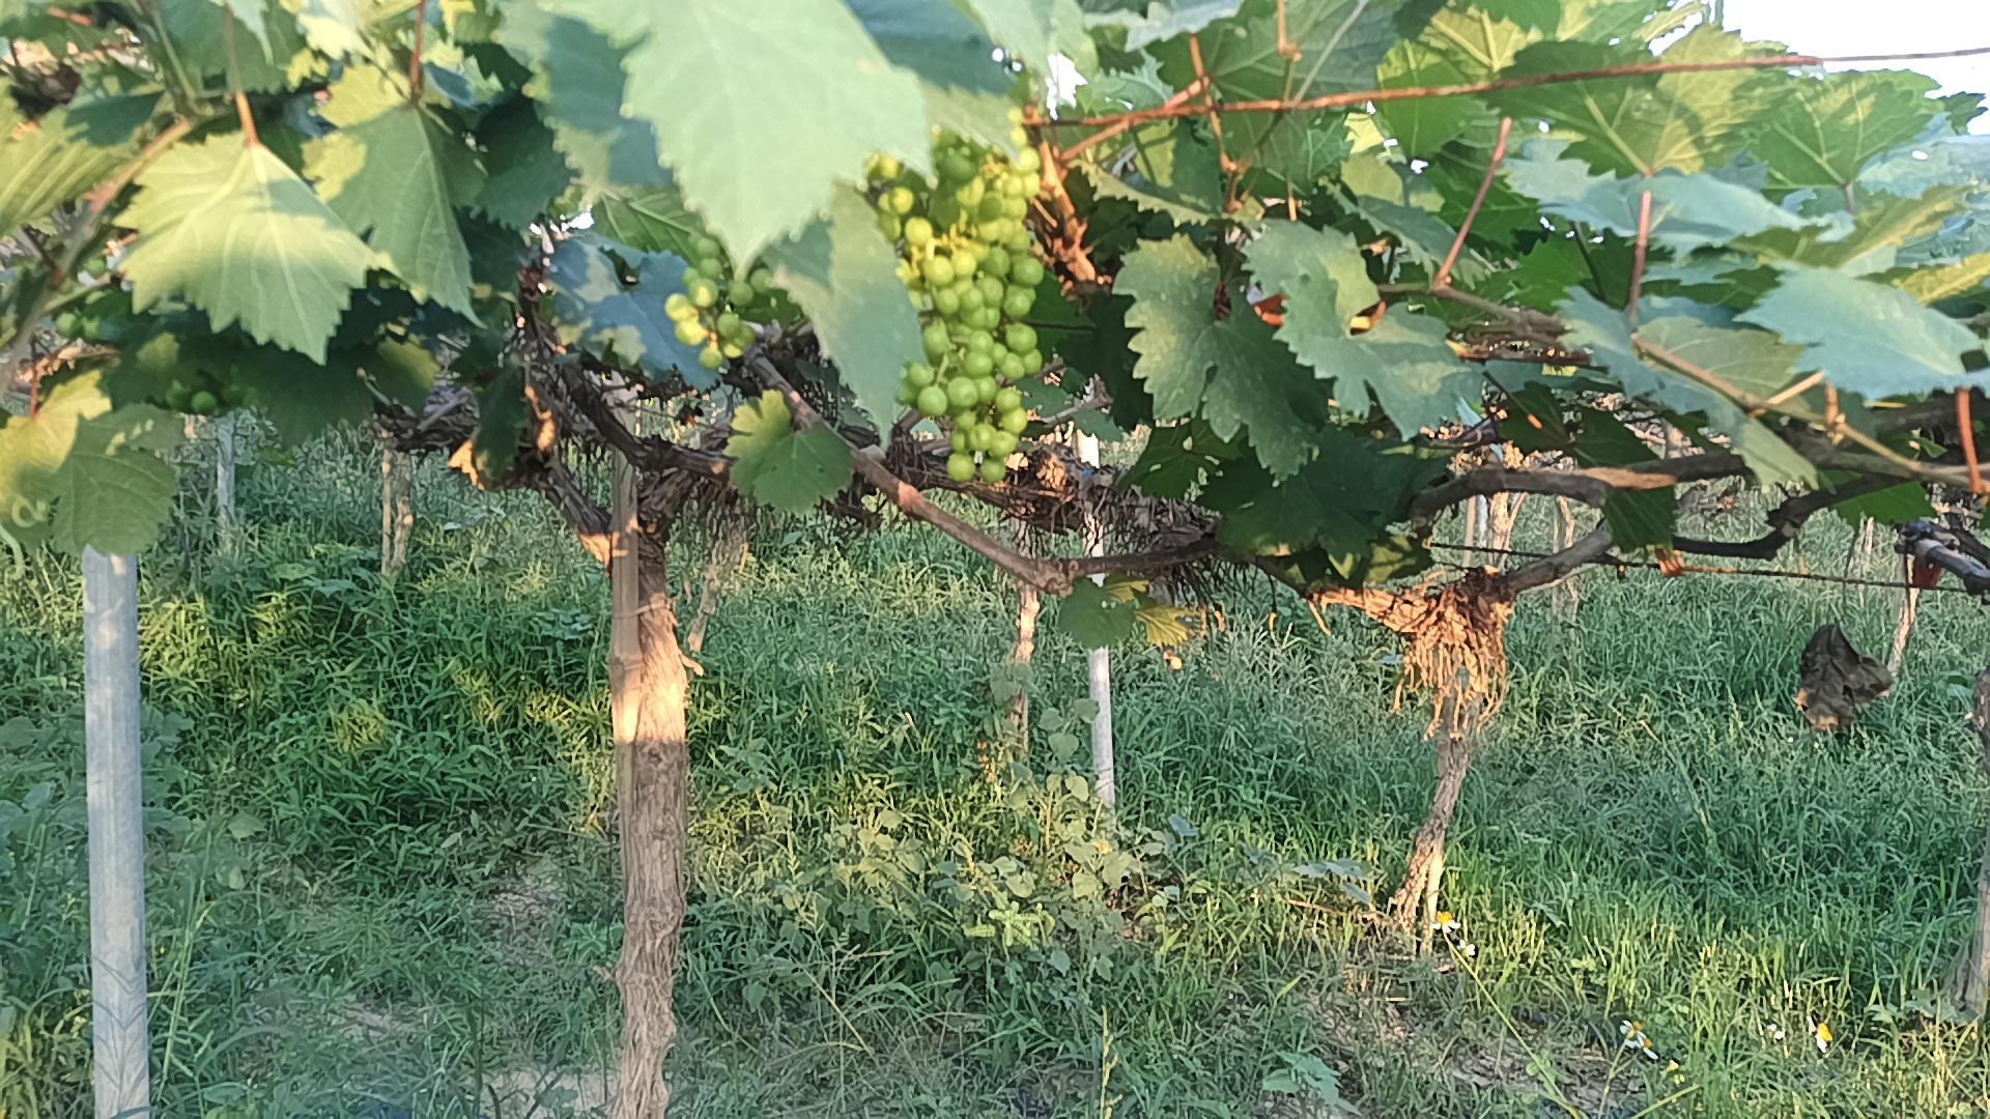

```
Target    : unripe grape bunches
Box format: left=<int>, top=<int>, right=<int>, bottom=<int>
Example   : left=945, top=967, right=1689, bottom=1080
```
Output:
left=662, top=230, right=776, bottom=370
left=870, top=132, right=1044, bottom=483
